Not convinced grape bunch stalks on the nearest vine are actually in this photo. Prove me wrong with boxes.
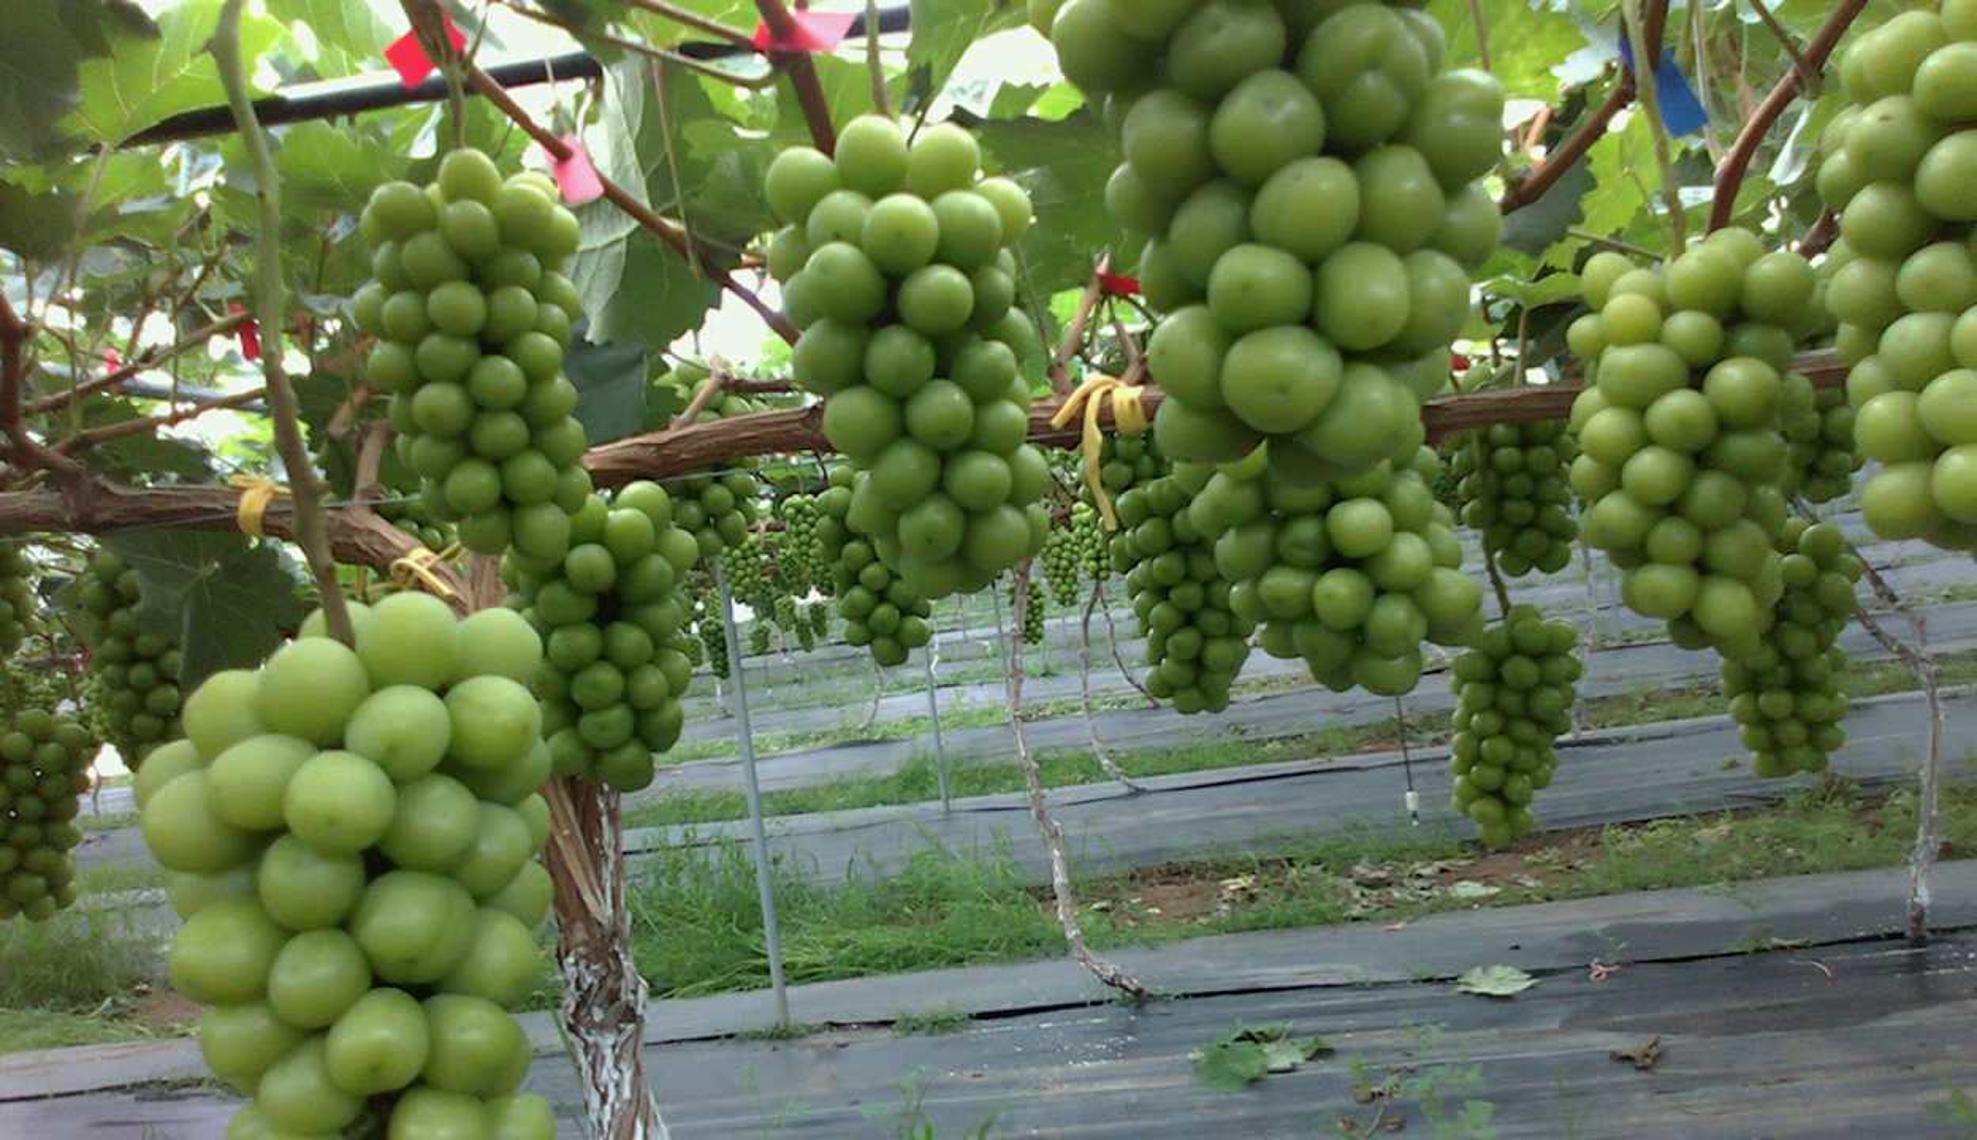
[423,2,466,144]
[1622,2,1687,256]
[865,2,893,117]
[206,2,352,648]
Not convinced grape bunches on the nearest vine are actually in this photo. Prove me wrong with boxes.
[502,480,695,795]
[1027,0,1505,486]
[130,591,558,1138]
[1174,442,1488,698]
[767,112,1053,598]
[1565,226,1814,662]
[353,146,592,575]
[1817,2,1975,553]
